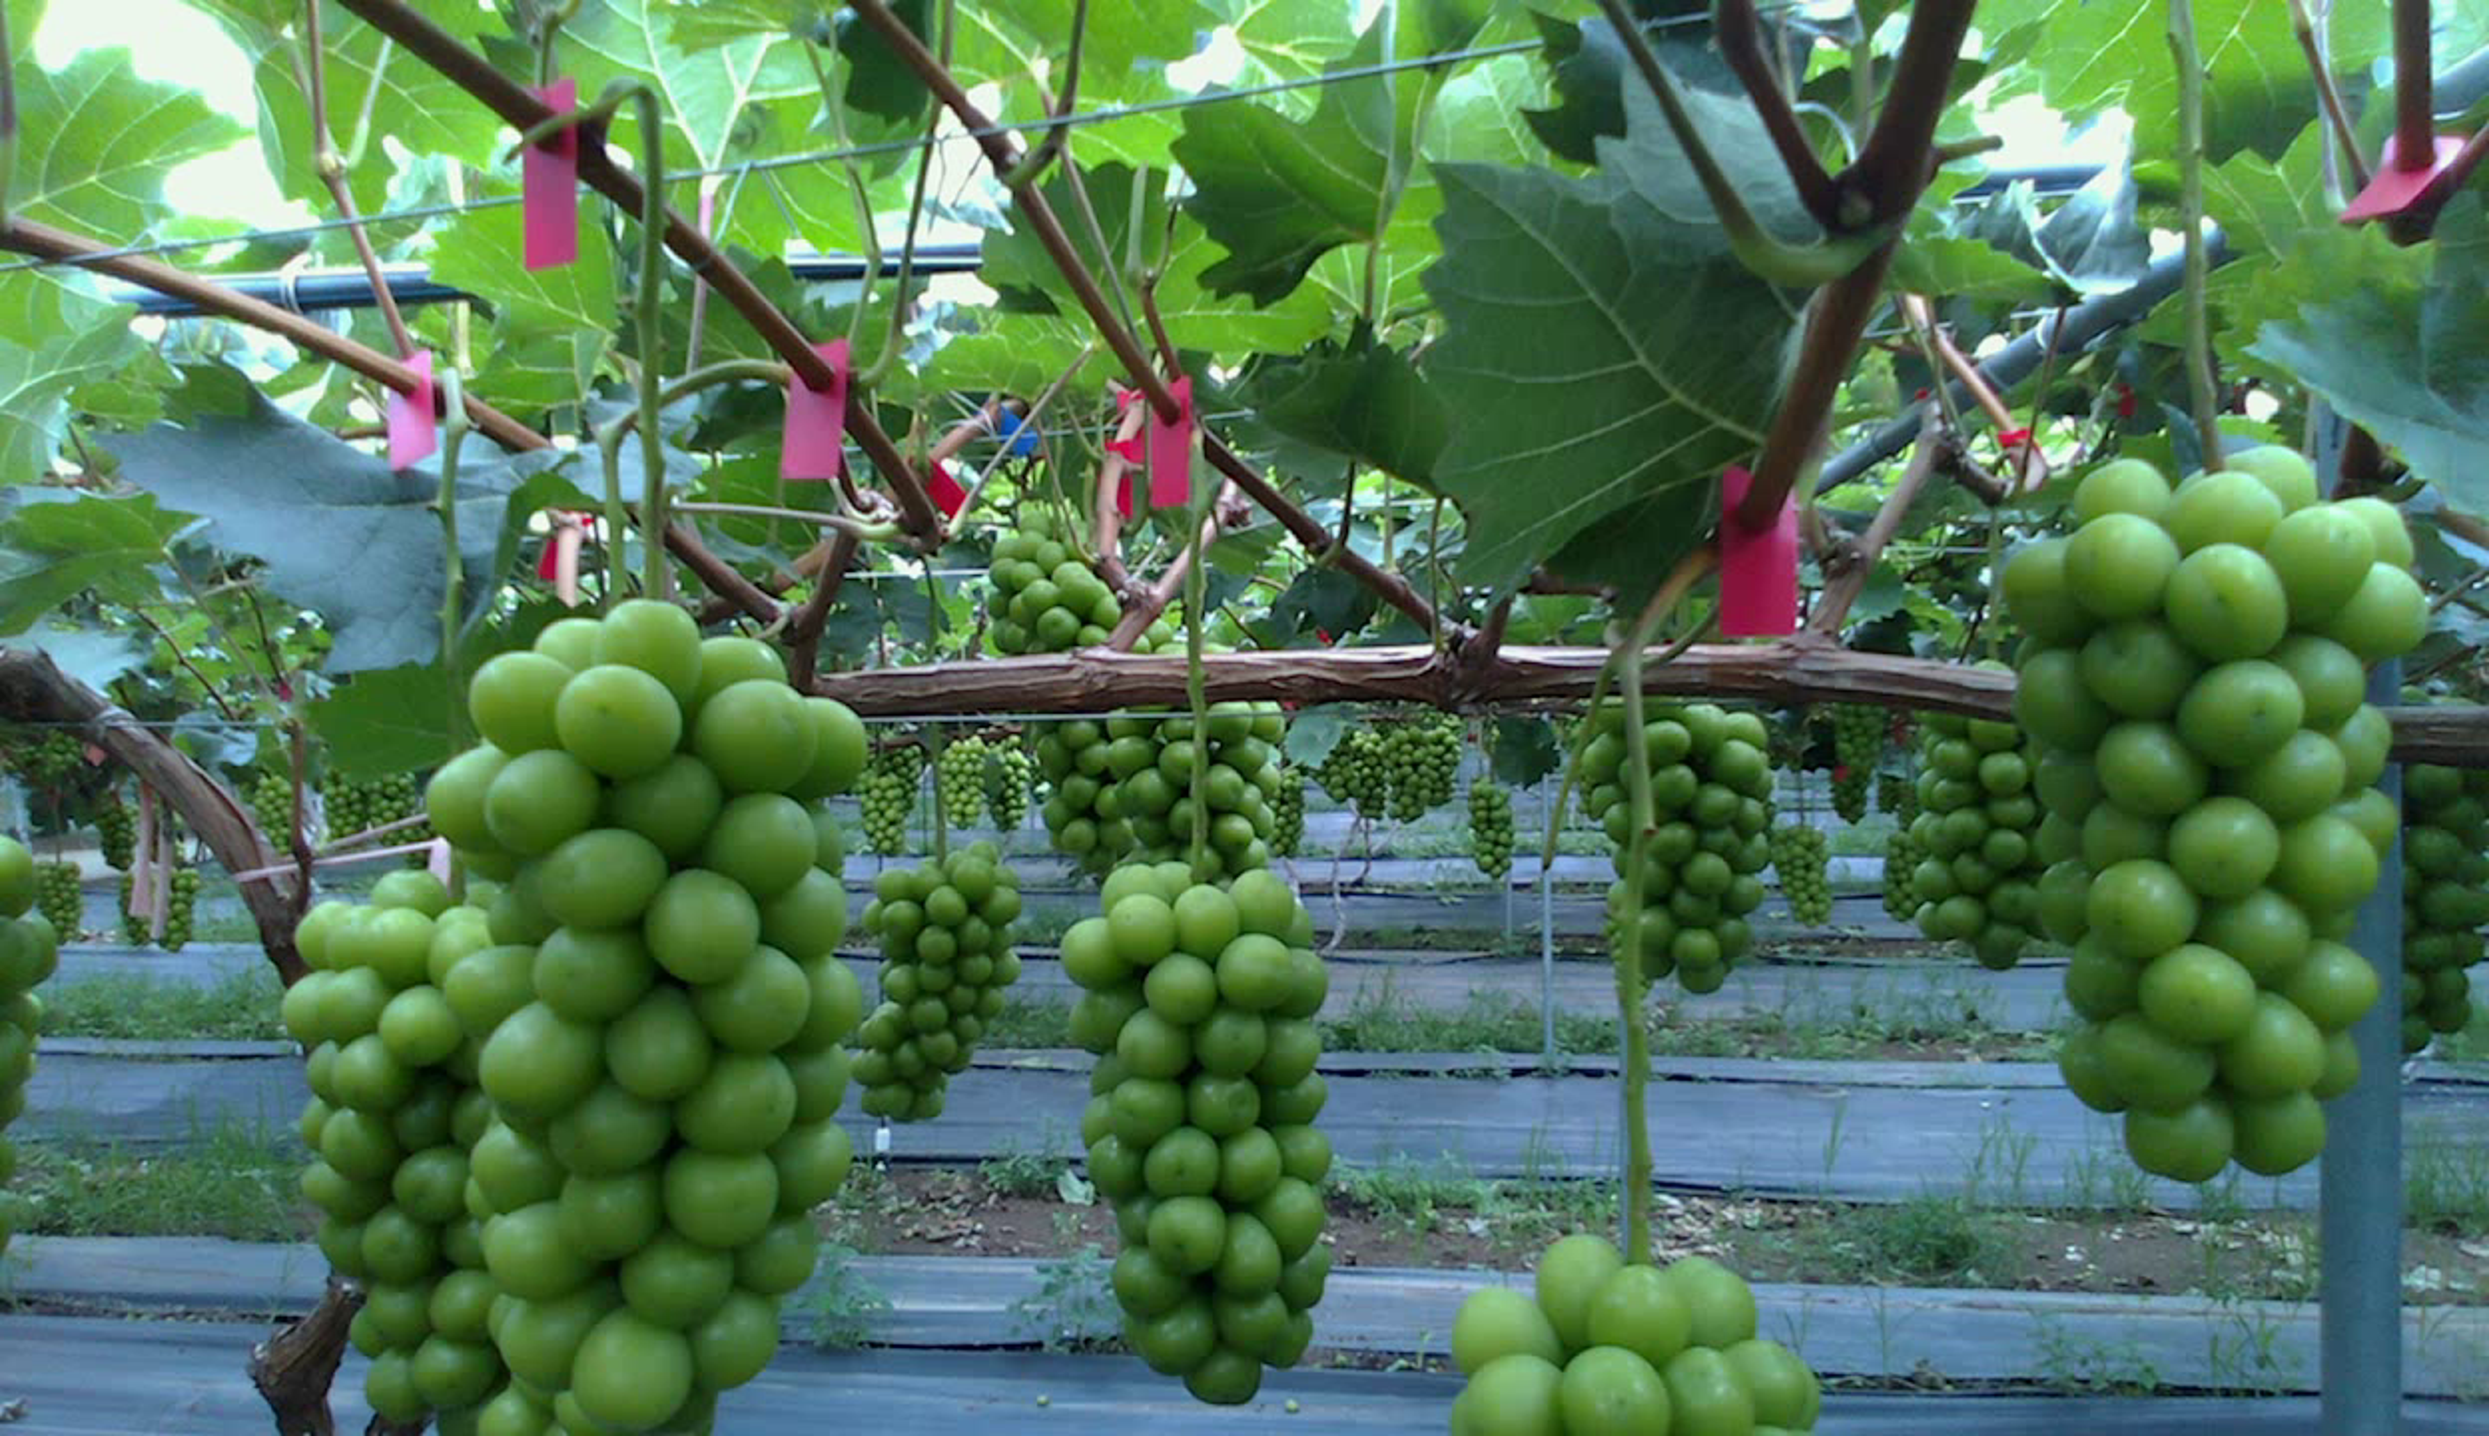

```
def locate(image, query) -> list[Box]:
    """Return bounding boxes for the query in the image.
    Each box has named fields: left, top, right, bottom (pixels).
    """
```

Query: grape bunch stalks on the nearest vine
left=2166, top=0, right=2226, bottom=479
left=1185, top=433, right=1207, bottom=884
left=596, top=76, right=670, bottom=598
left=1609, top=538, right=1717, bottom=1264
left=588, top=361, right=790, bottom=608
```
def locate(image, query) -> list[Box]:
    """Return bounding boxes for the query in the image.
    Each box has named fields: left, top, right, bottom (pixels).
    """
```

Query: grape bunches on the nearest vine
left=2000, top=447, right=2429, bottom=1183
left=2, top=830, right=64, bottom=1243
left=1448, top=1233, right=1823, bottom=1434
left=427, top=598, right=868, bottom=1432
left=283, top=870, right=513, bottom=1434
left=1057, top=862, right=1336, bottom=1404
